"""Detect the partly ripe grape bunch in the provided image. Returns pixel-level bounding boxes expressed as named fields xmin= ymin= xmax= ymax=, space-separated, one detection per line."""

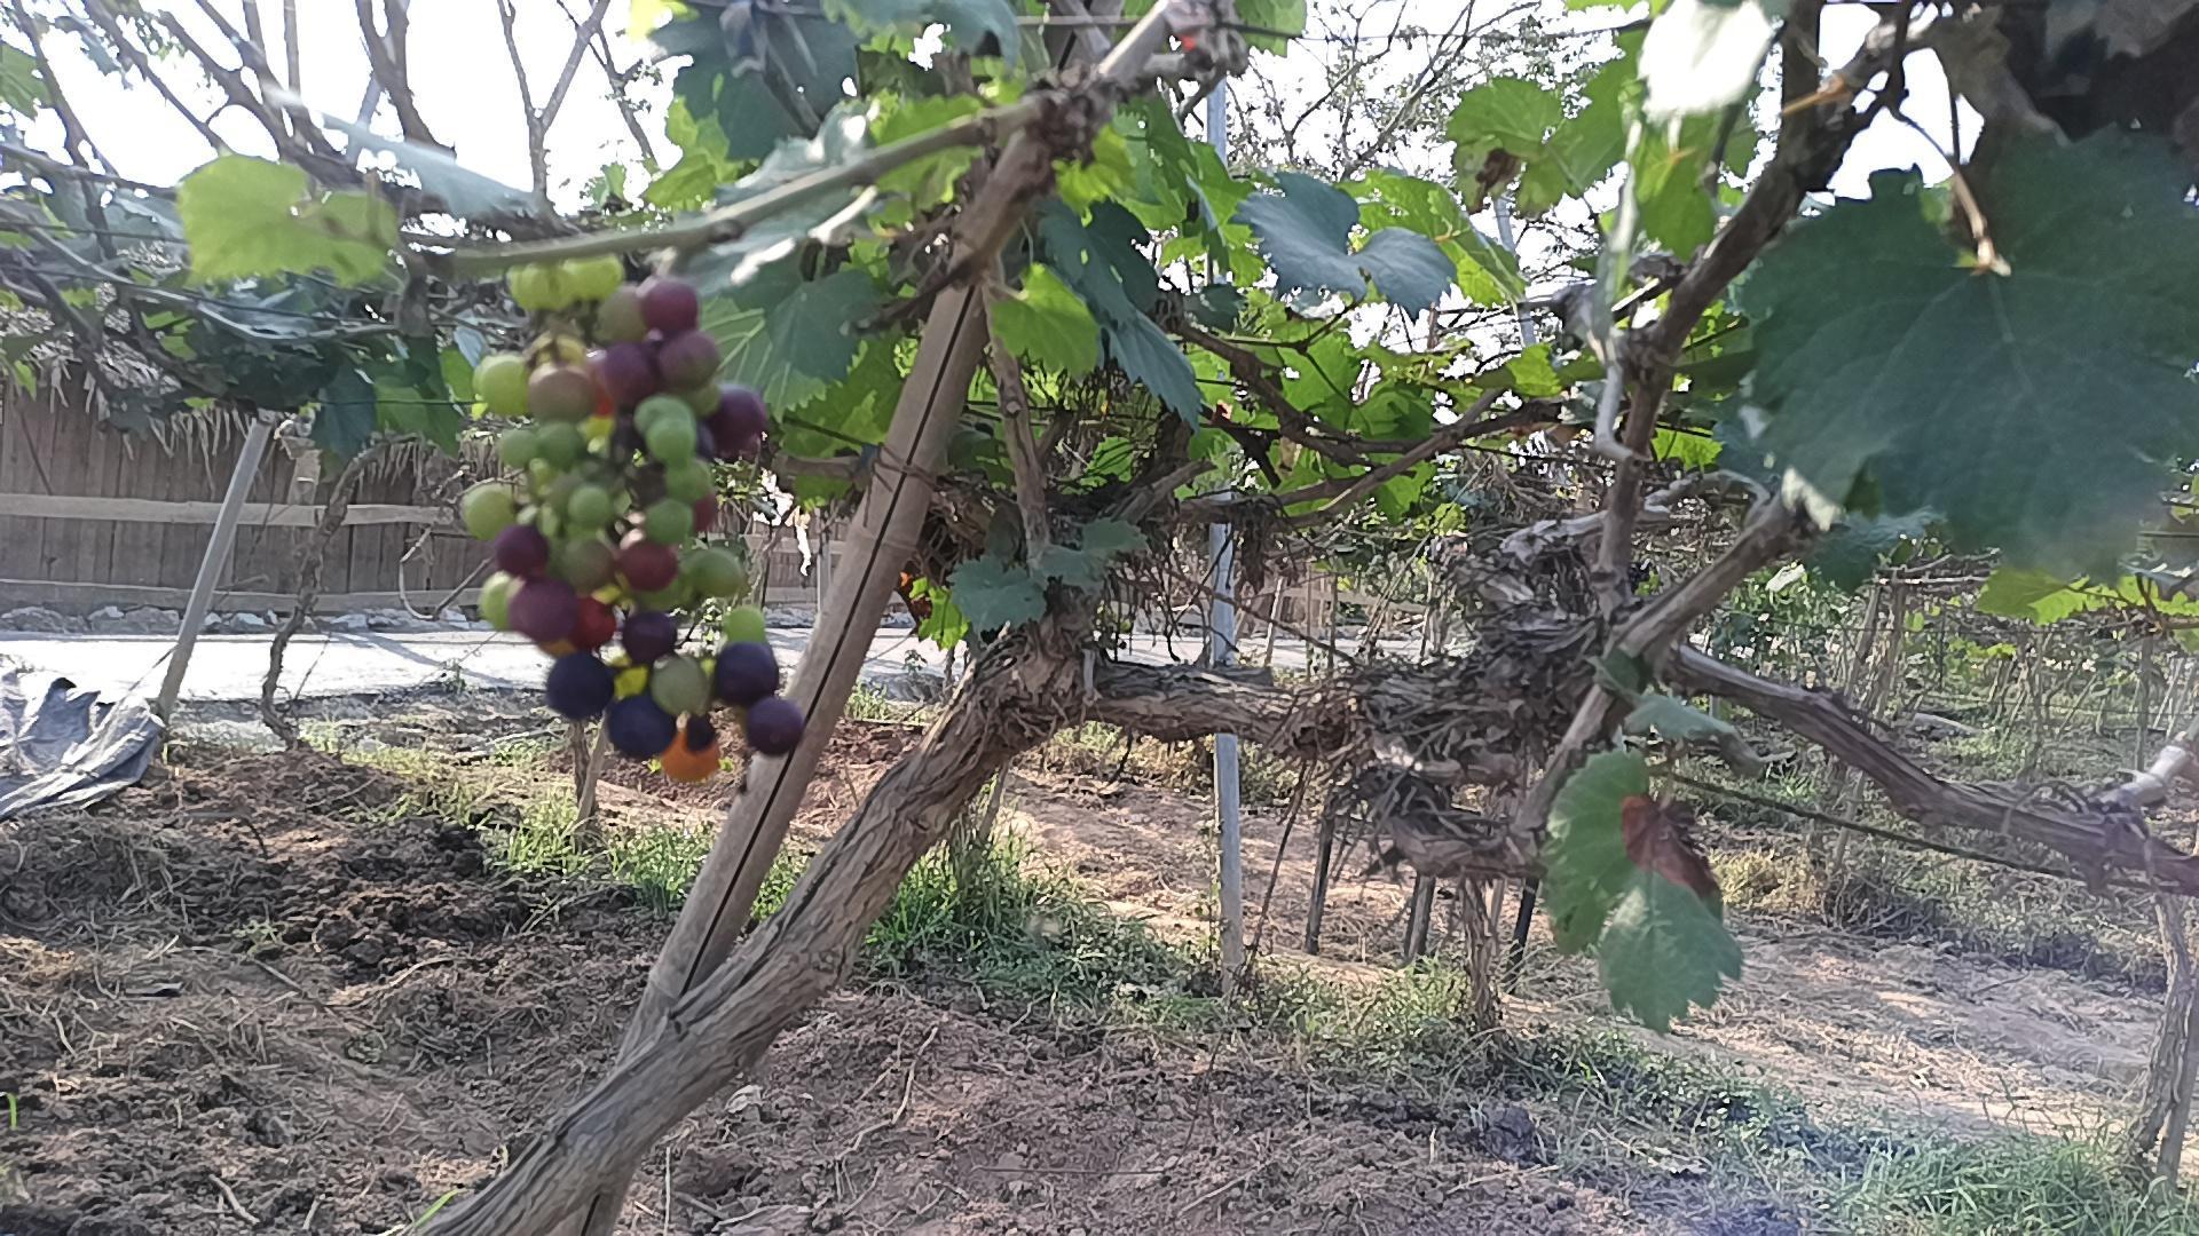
xmin=466 ymin=251 xmax=803 ymax=779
